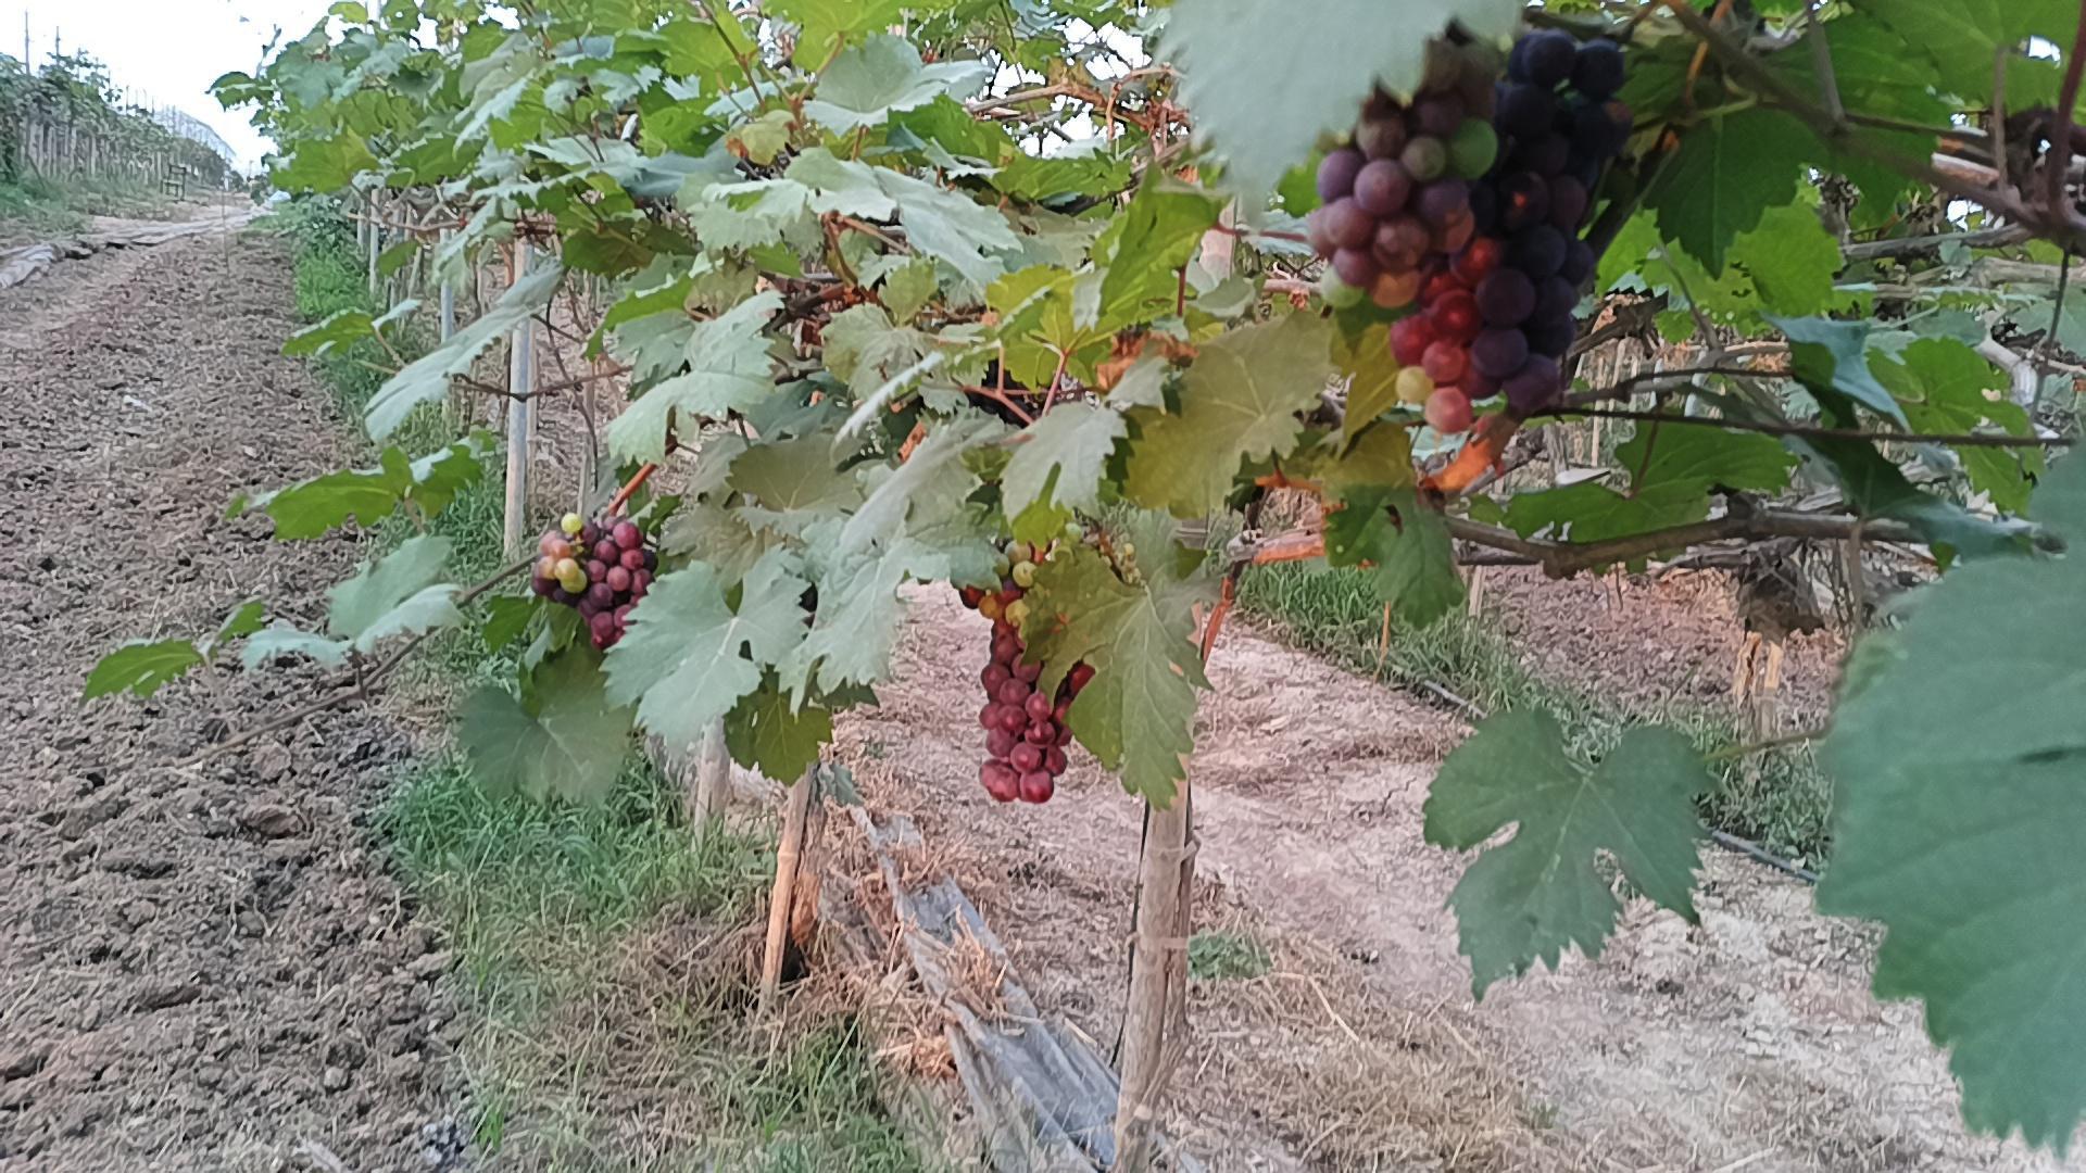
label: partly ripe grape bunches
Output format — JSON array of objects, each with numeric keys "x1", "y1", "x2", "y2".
[
  {"x1": 1305, "y1": 25, "x2": 1630, "y2": 490},
  {"x1": 962, "y1": 544, "x2": 1094, "y2": 802},
  {"x1": 531, "y1": 497, "x2": 657, "y2": 648}
]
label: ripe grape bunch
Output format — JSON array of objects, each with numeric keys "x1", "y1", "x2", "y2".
[{"x1": 962, "y1": 358, "x2": 1048, "y2": 428}]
